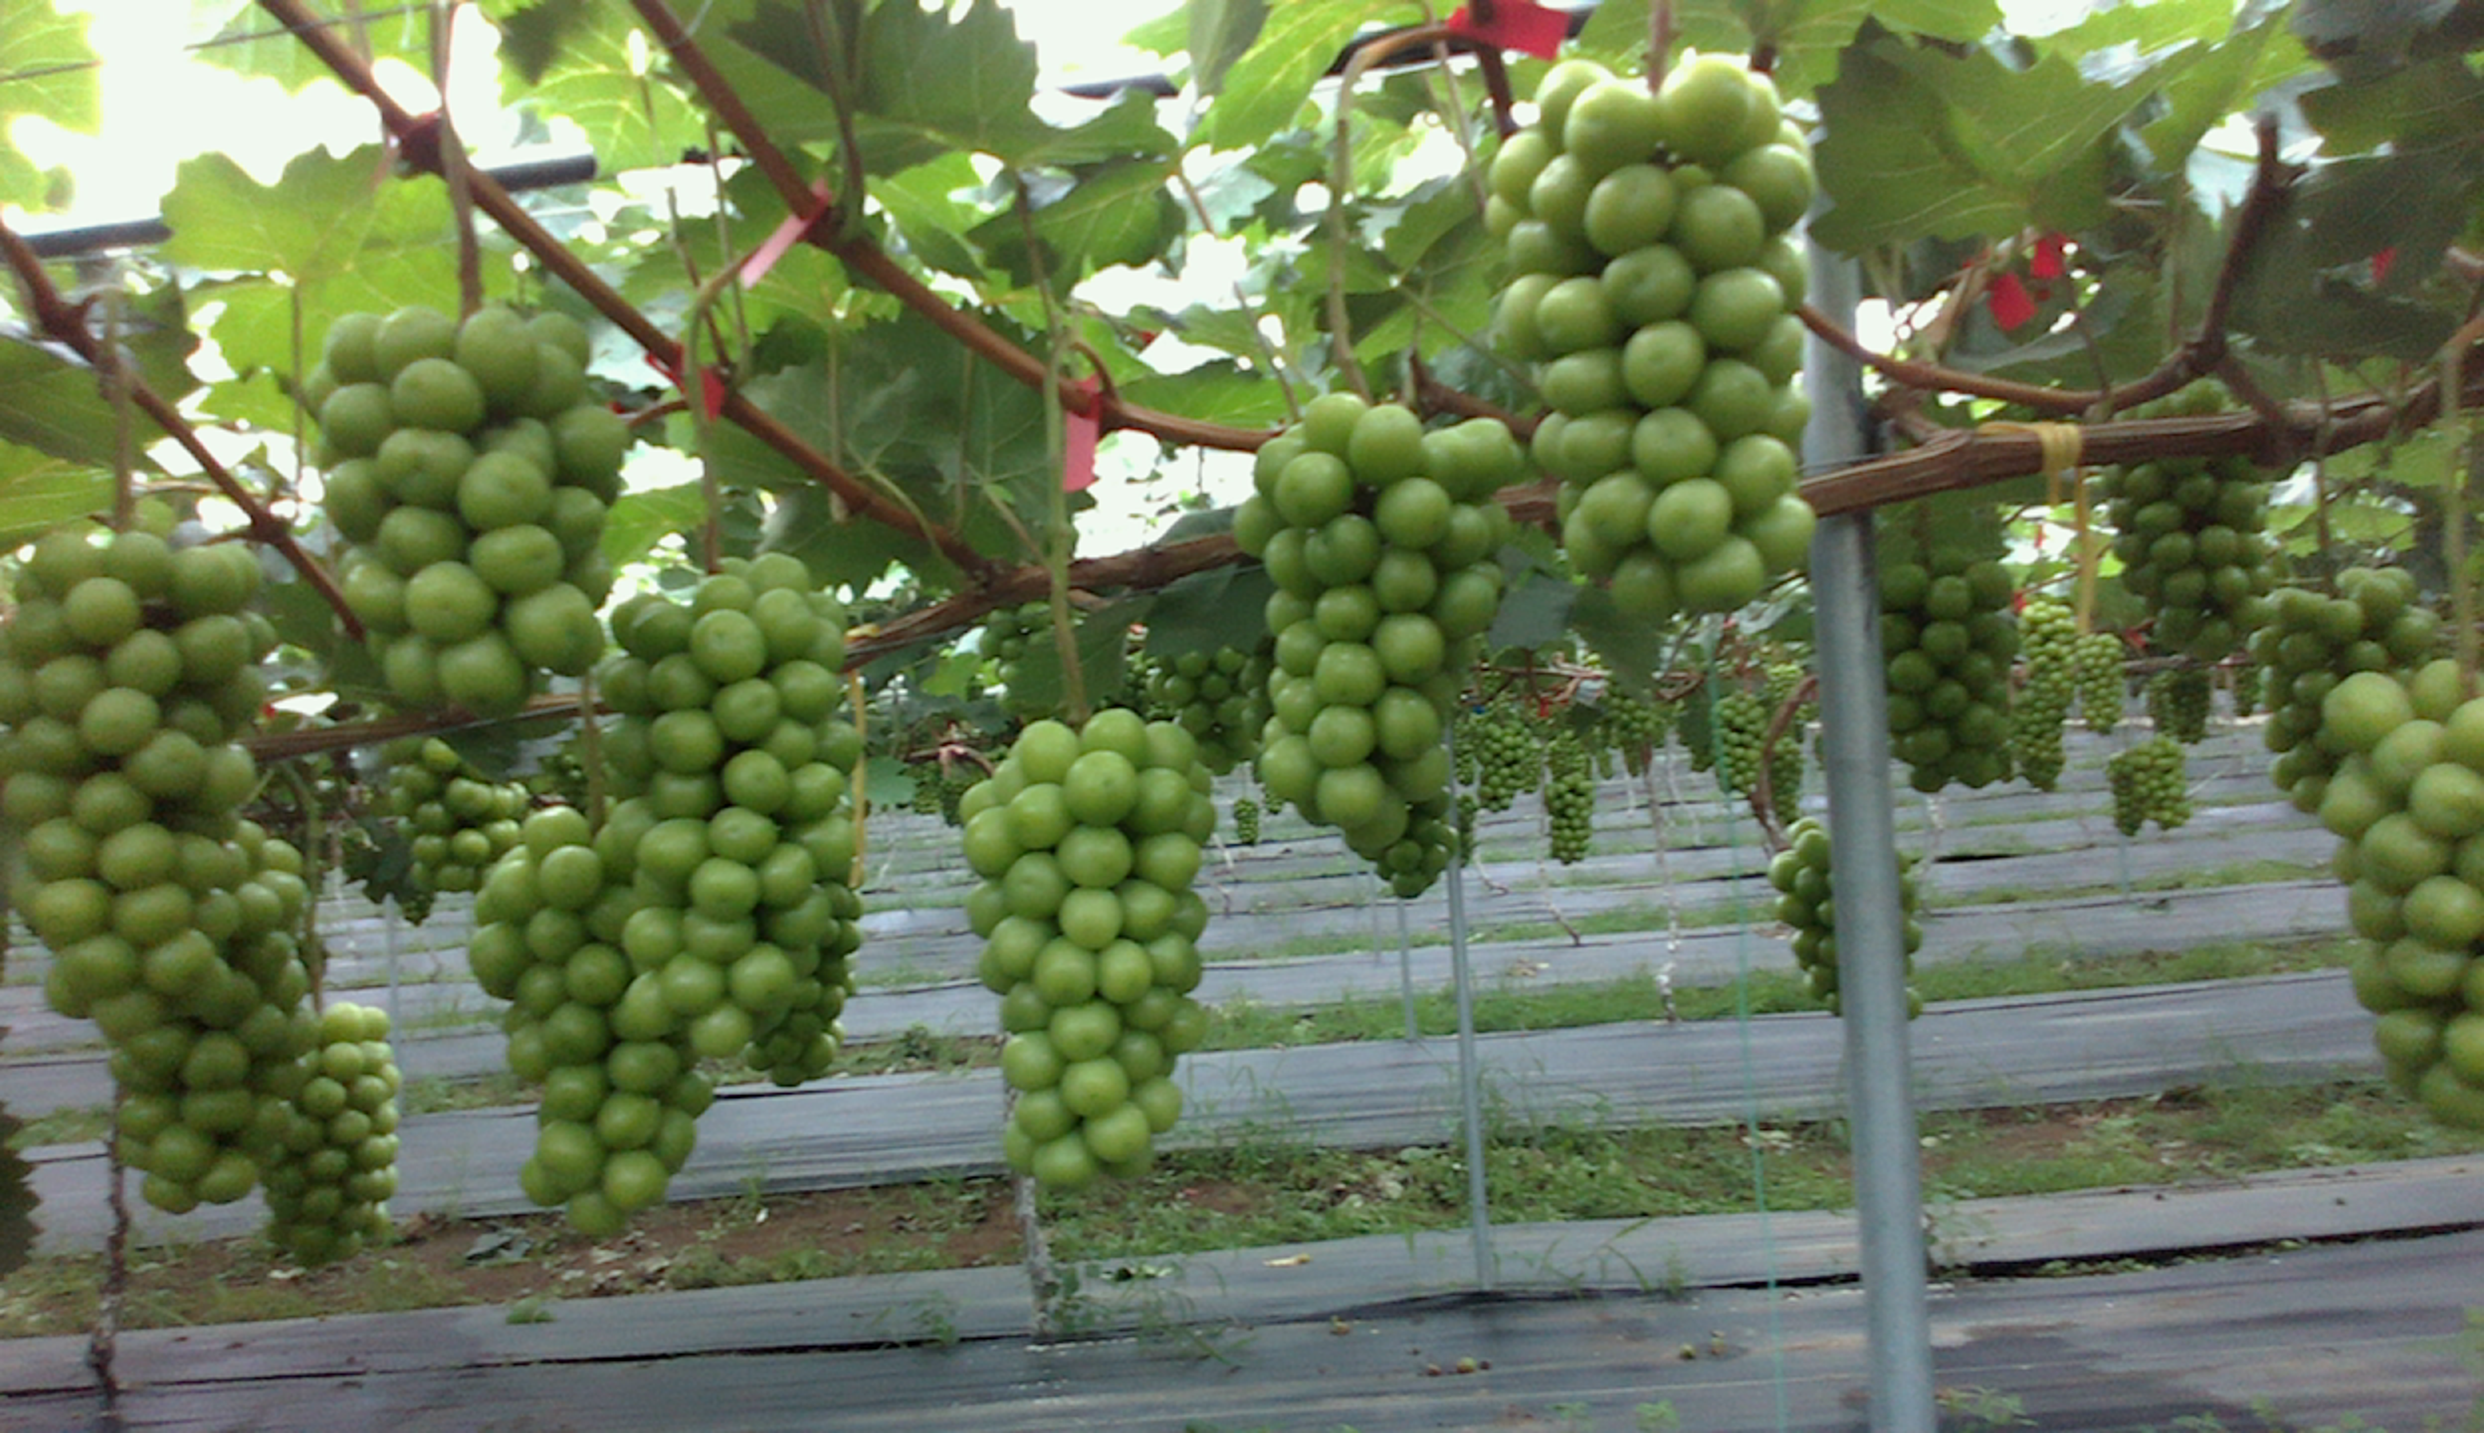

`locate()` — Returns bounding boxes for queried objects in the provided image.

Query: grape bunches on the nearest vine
[2319,663,2482,1132]
[1236,392,1521,854]
[595,553,862,1059]
[2,525,281,1045]
[963,709,1216,1196]
[1487,58,1815,619]
[314,305,623,716]
[105,826,318,1216]
[468,808,715,1240]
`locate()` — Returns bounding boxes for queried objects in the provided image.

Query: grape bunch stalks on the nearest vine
[84,287,133,529]
[2424,314,2480,699]
[679,259,740,573]
[1638,0,1682,90]
[1330,26,1443,396]
[1045,324,1111,726]
[430,6,484,314]
[581,679,605,836]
